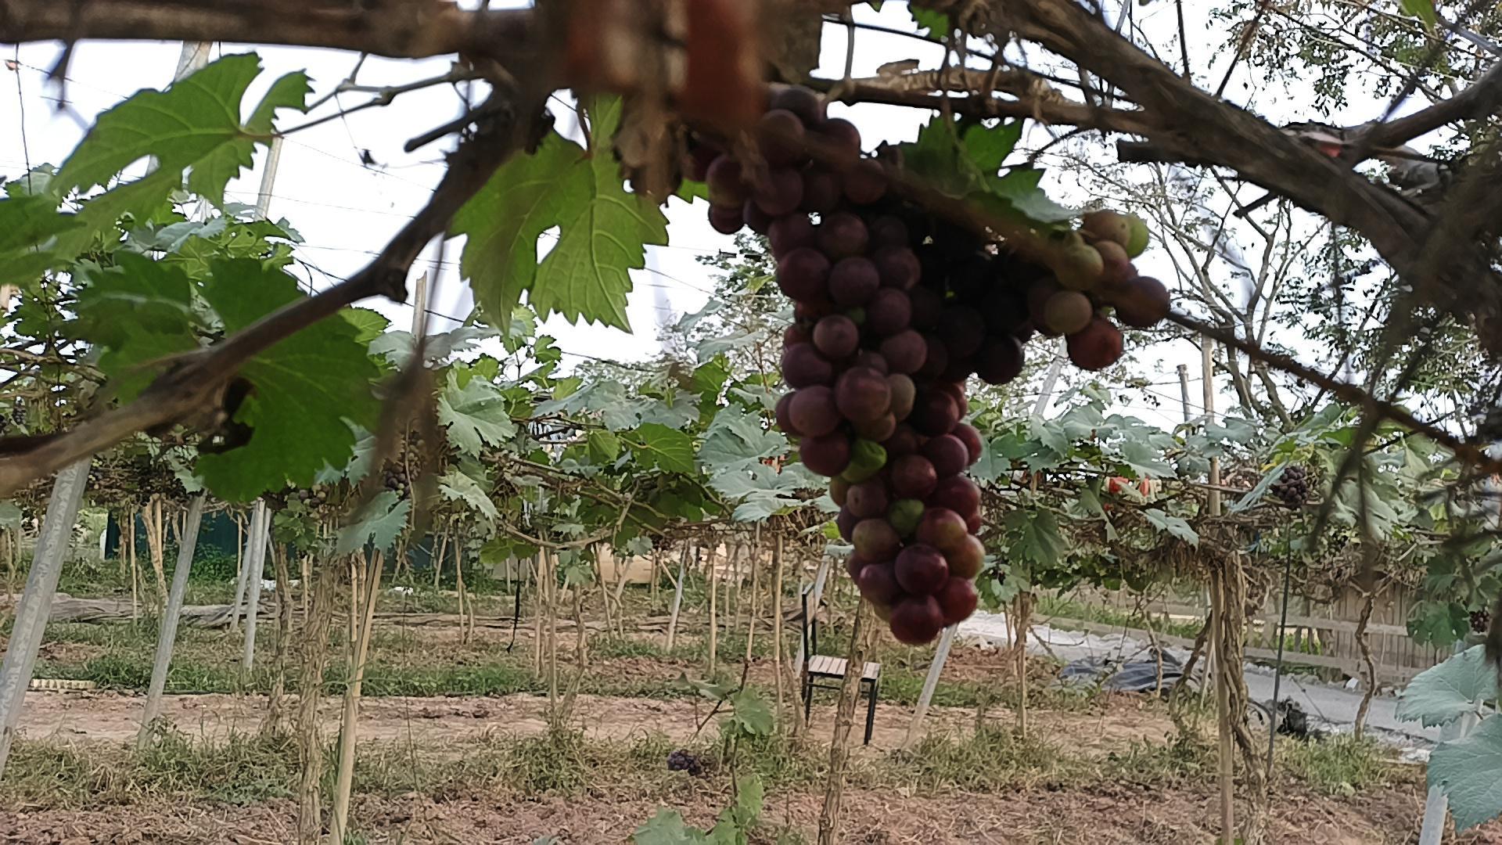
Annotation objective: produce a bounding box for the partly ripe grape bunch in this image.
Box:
[695,86,1169,644]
